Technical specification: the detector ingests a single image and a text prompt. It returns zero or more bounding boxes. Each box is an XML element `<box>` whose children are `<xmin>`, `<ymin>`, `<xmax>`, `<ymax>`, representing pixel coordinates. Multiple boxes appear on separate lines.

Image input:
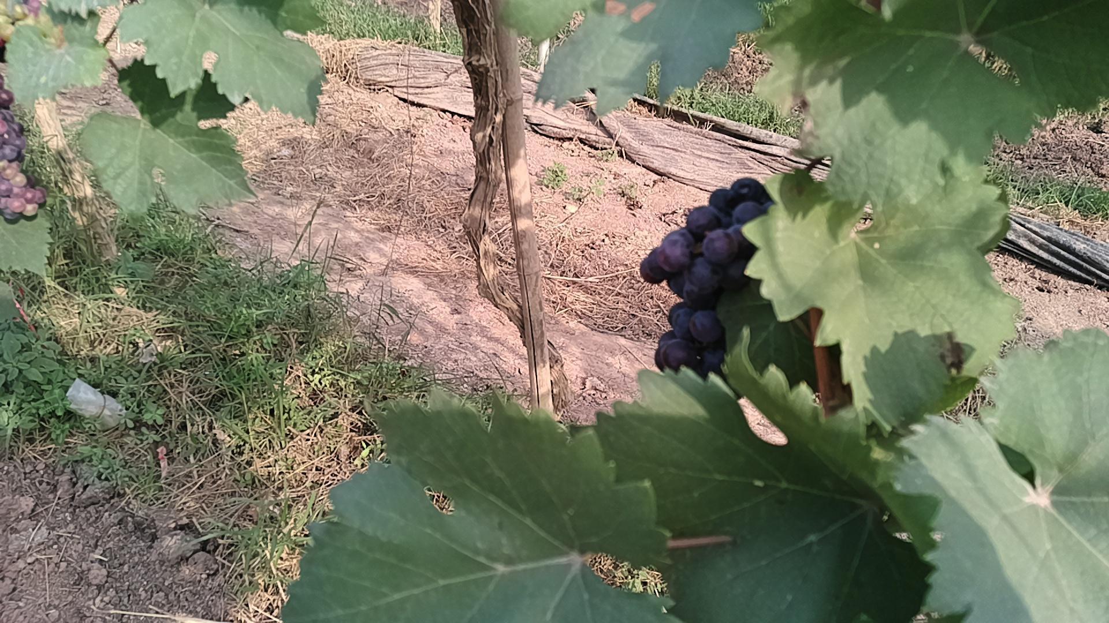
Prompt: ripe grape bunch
<box><xmin>639</xmin><ymin>178</ymin><xmax>775</xmax><ymax>379</ymax></box>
